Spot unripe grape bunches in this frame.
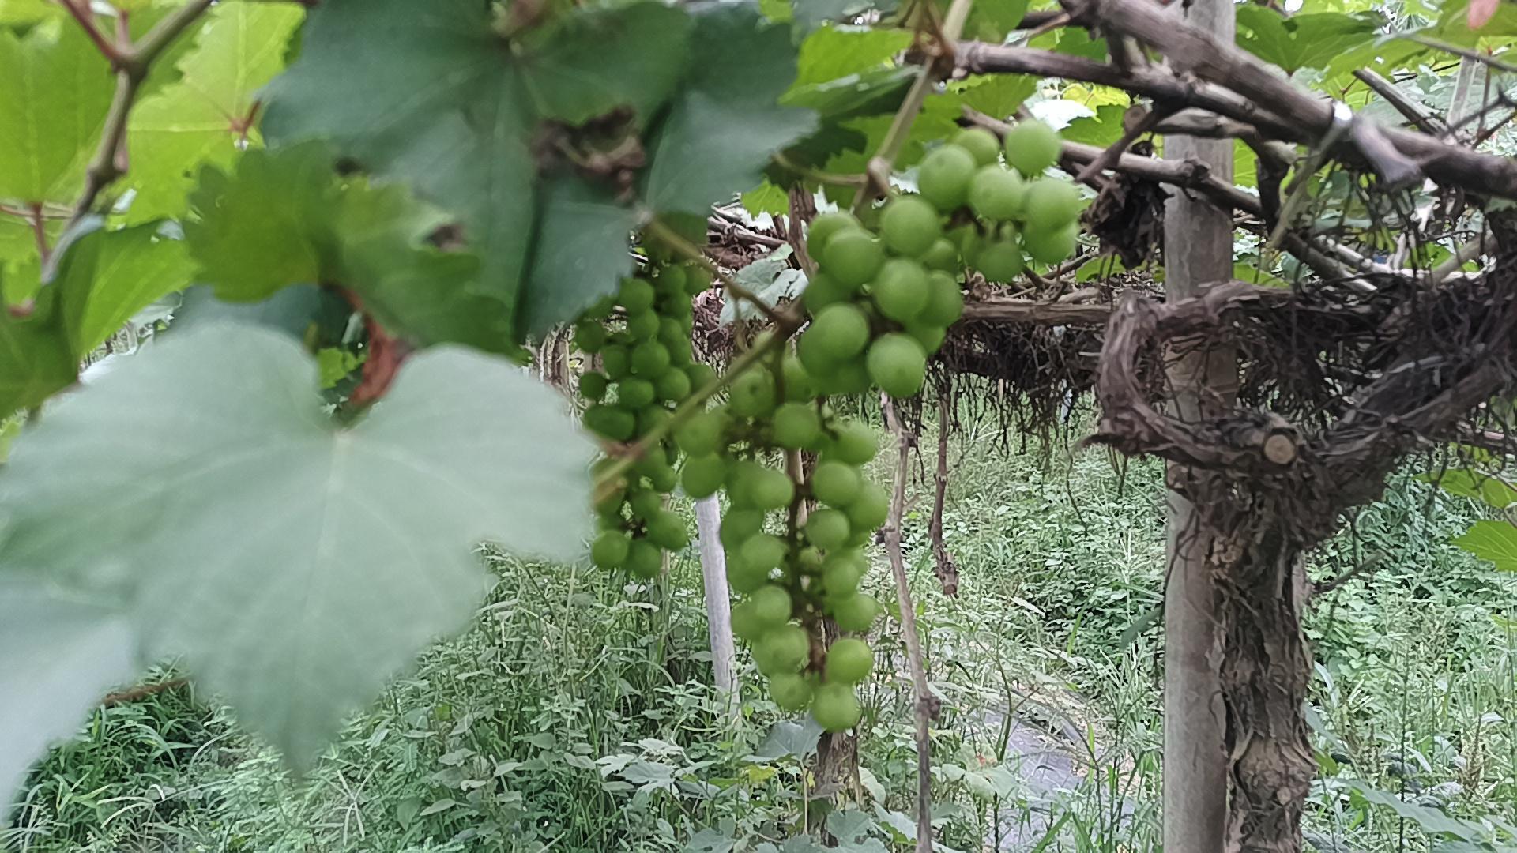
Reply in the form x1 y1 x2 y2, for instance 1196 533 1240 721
574 229 712 578
799 121 1088 396
679 344 886 735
